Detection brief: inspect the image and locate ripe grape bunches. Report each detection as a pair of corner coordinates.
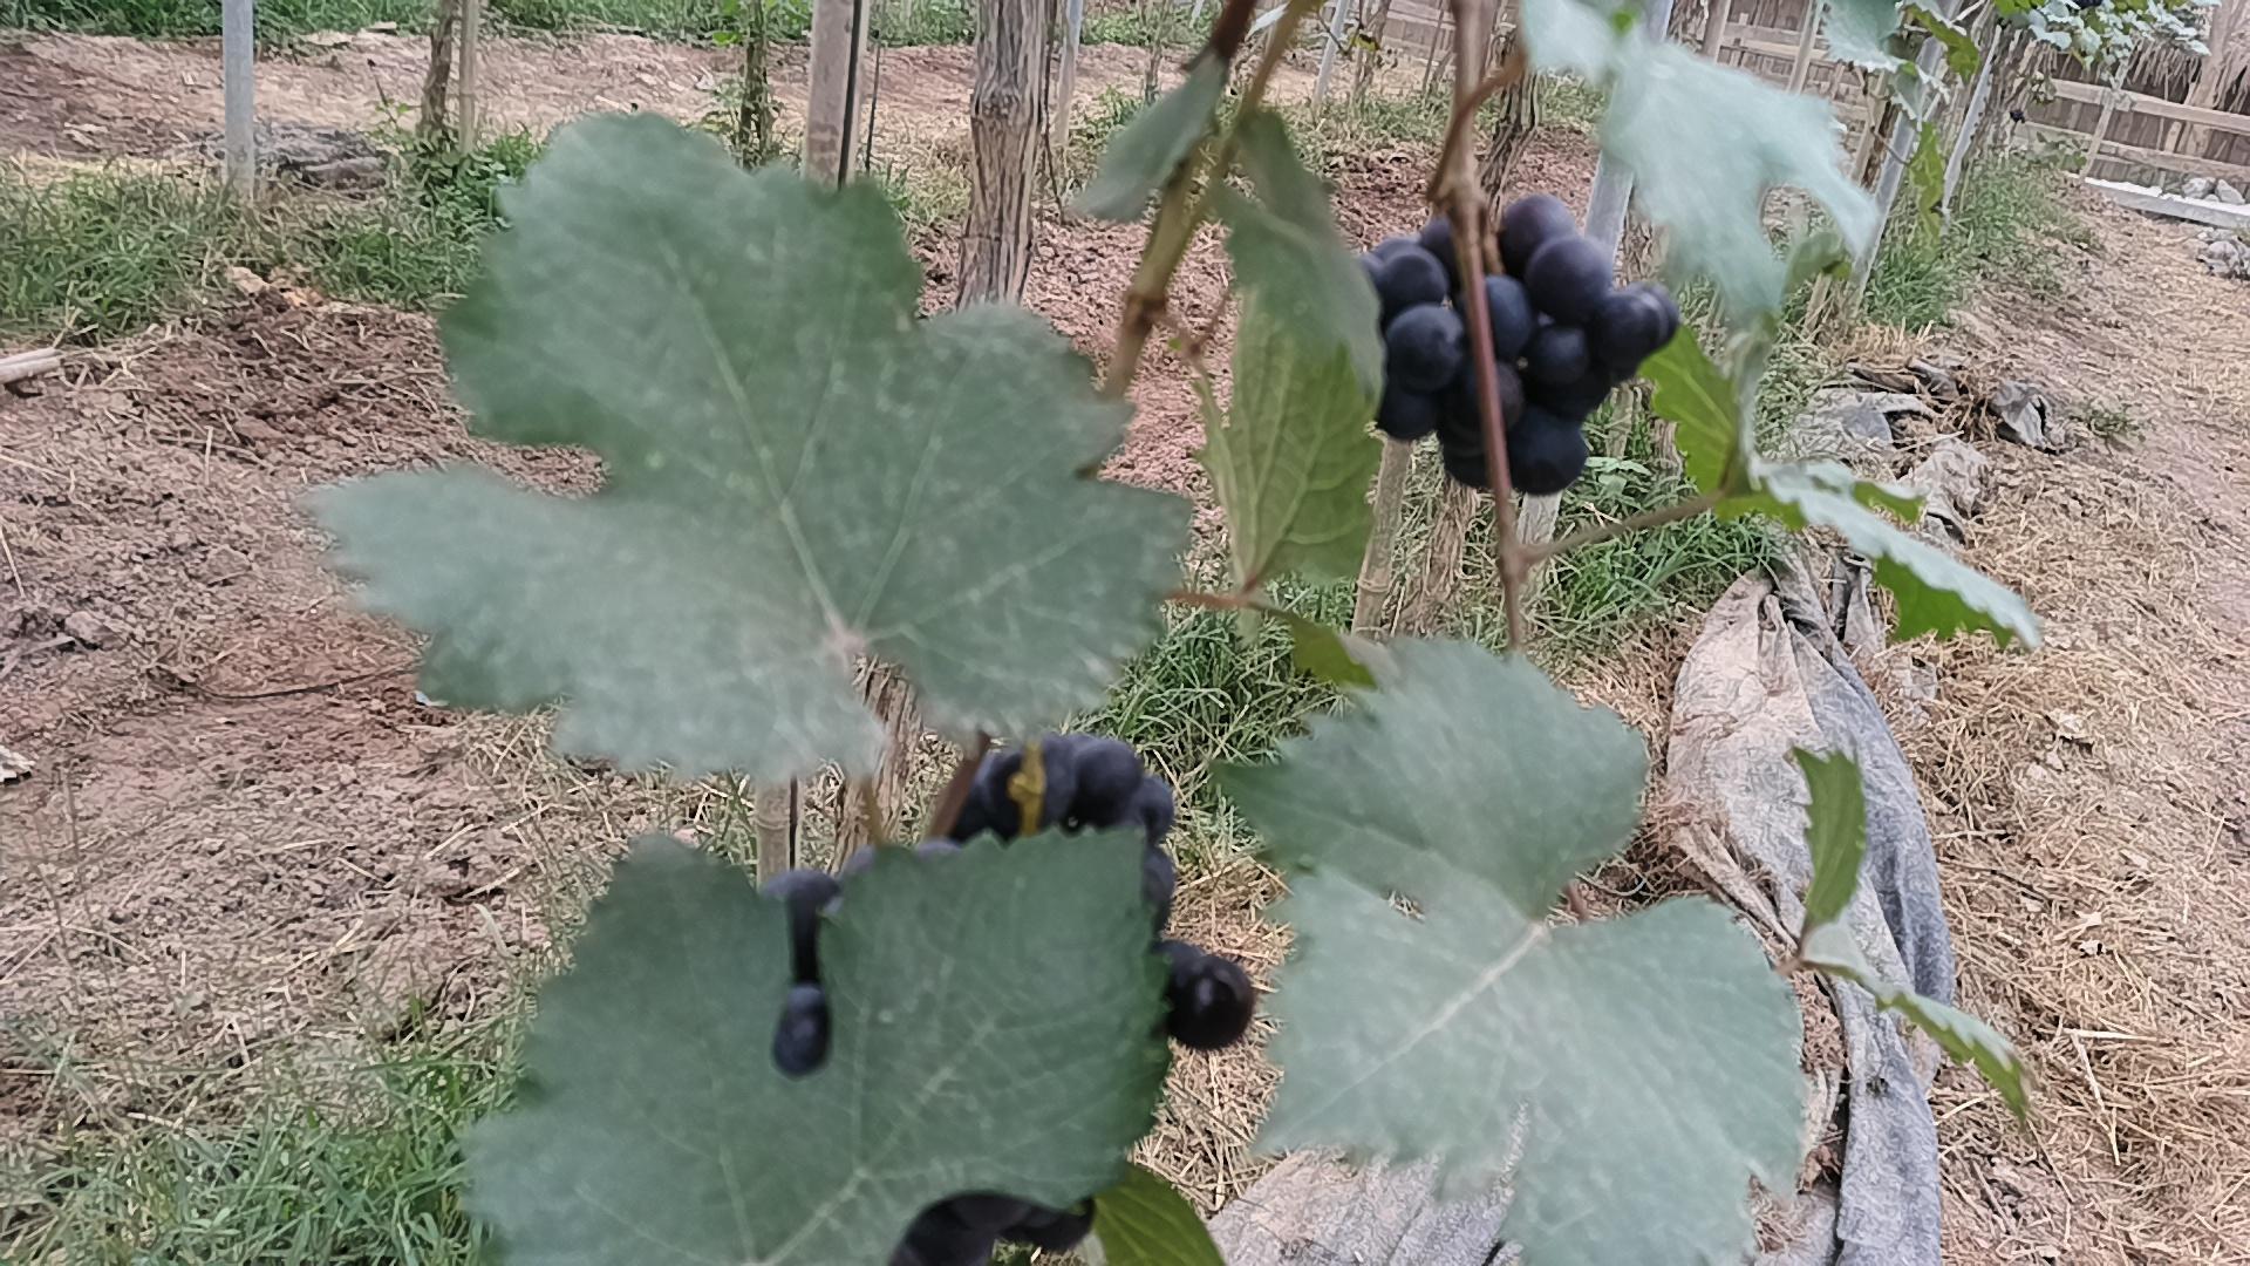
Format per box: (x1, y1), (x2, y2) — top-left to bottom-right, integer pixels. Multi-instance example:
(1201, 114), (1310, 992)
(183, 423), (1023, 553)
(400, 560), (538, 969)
(1351, 195), (1679, 494)
(765, 731), (1254, 1265)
